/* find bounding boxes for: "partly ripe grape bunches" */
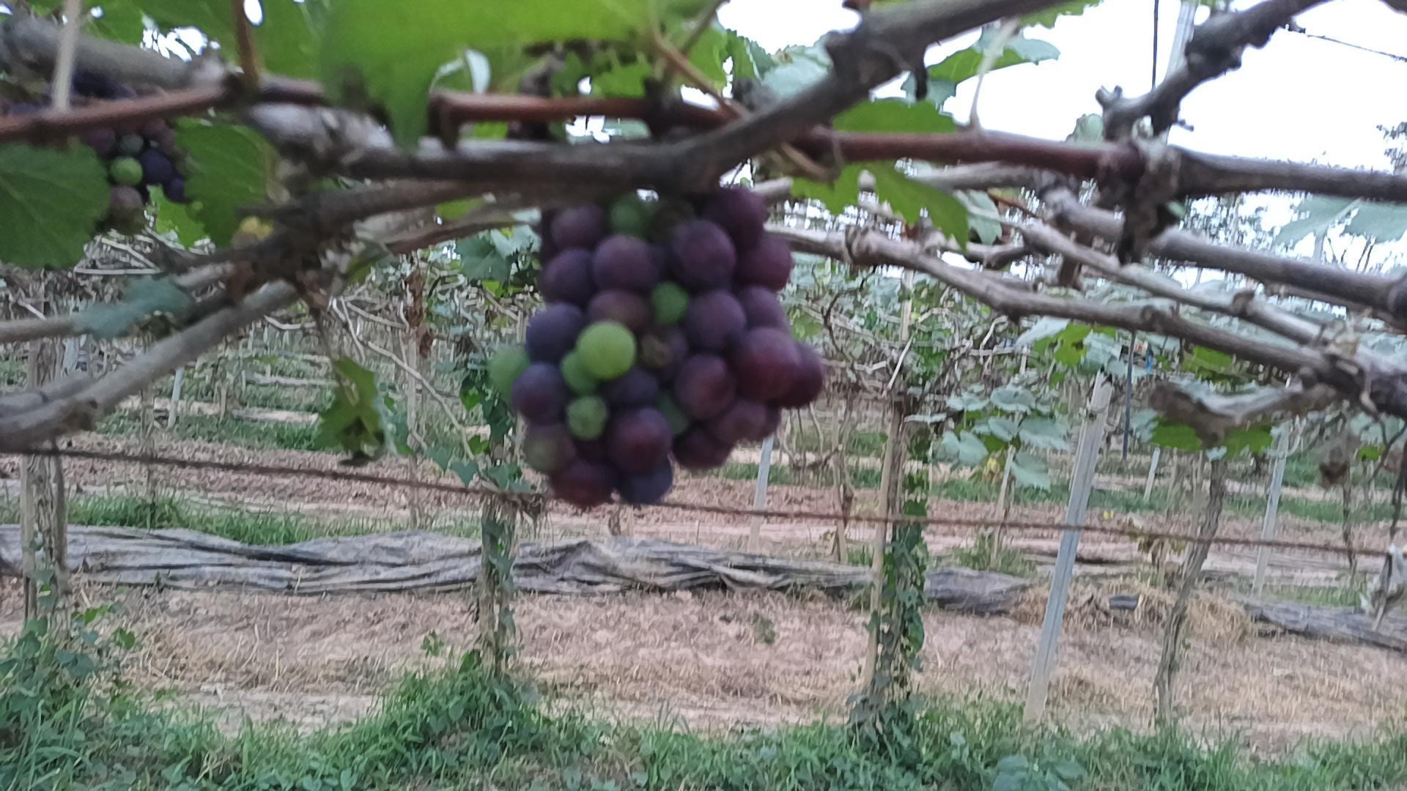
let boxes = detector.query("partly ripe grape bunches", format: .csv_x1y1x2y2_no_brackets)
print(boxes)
0,85,186,226
491,188,824,506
